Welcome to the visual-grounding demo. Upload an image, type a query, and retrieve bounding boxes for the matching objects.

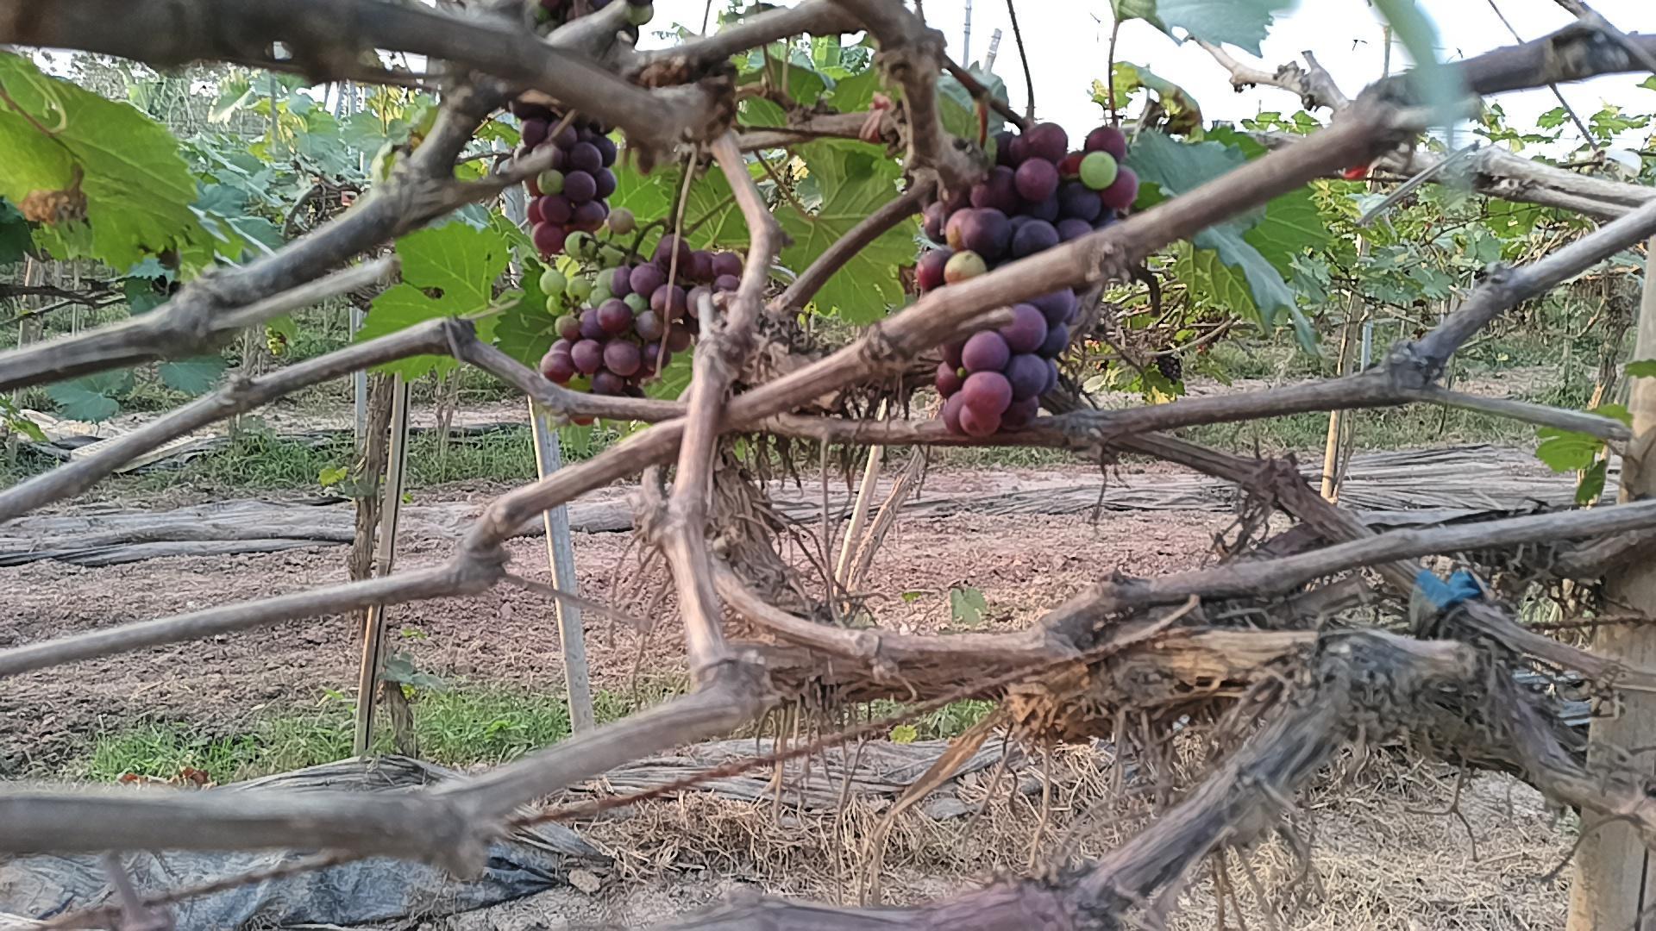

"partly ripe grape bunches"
[539,213,742,427]
[916,122,1138,438]
[508,0,655,259]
